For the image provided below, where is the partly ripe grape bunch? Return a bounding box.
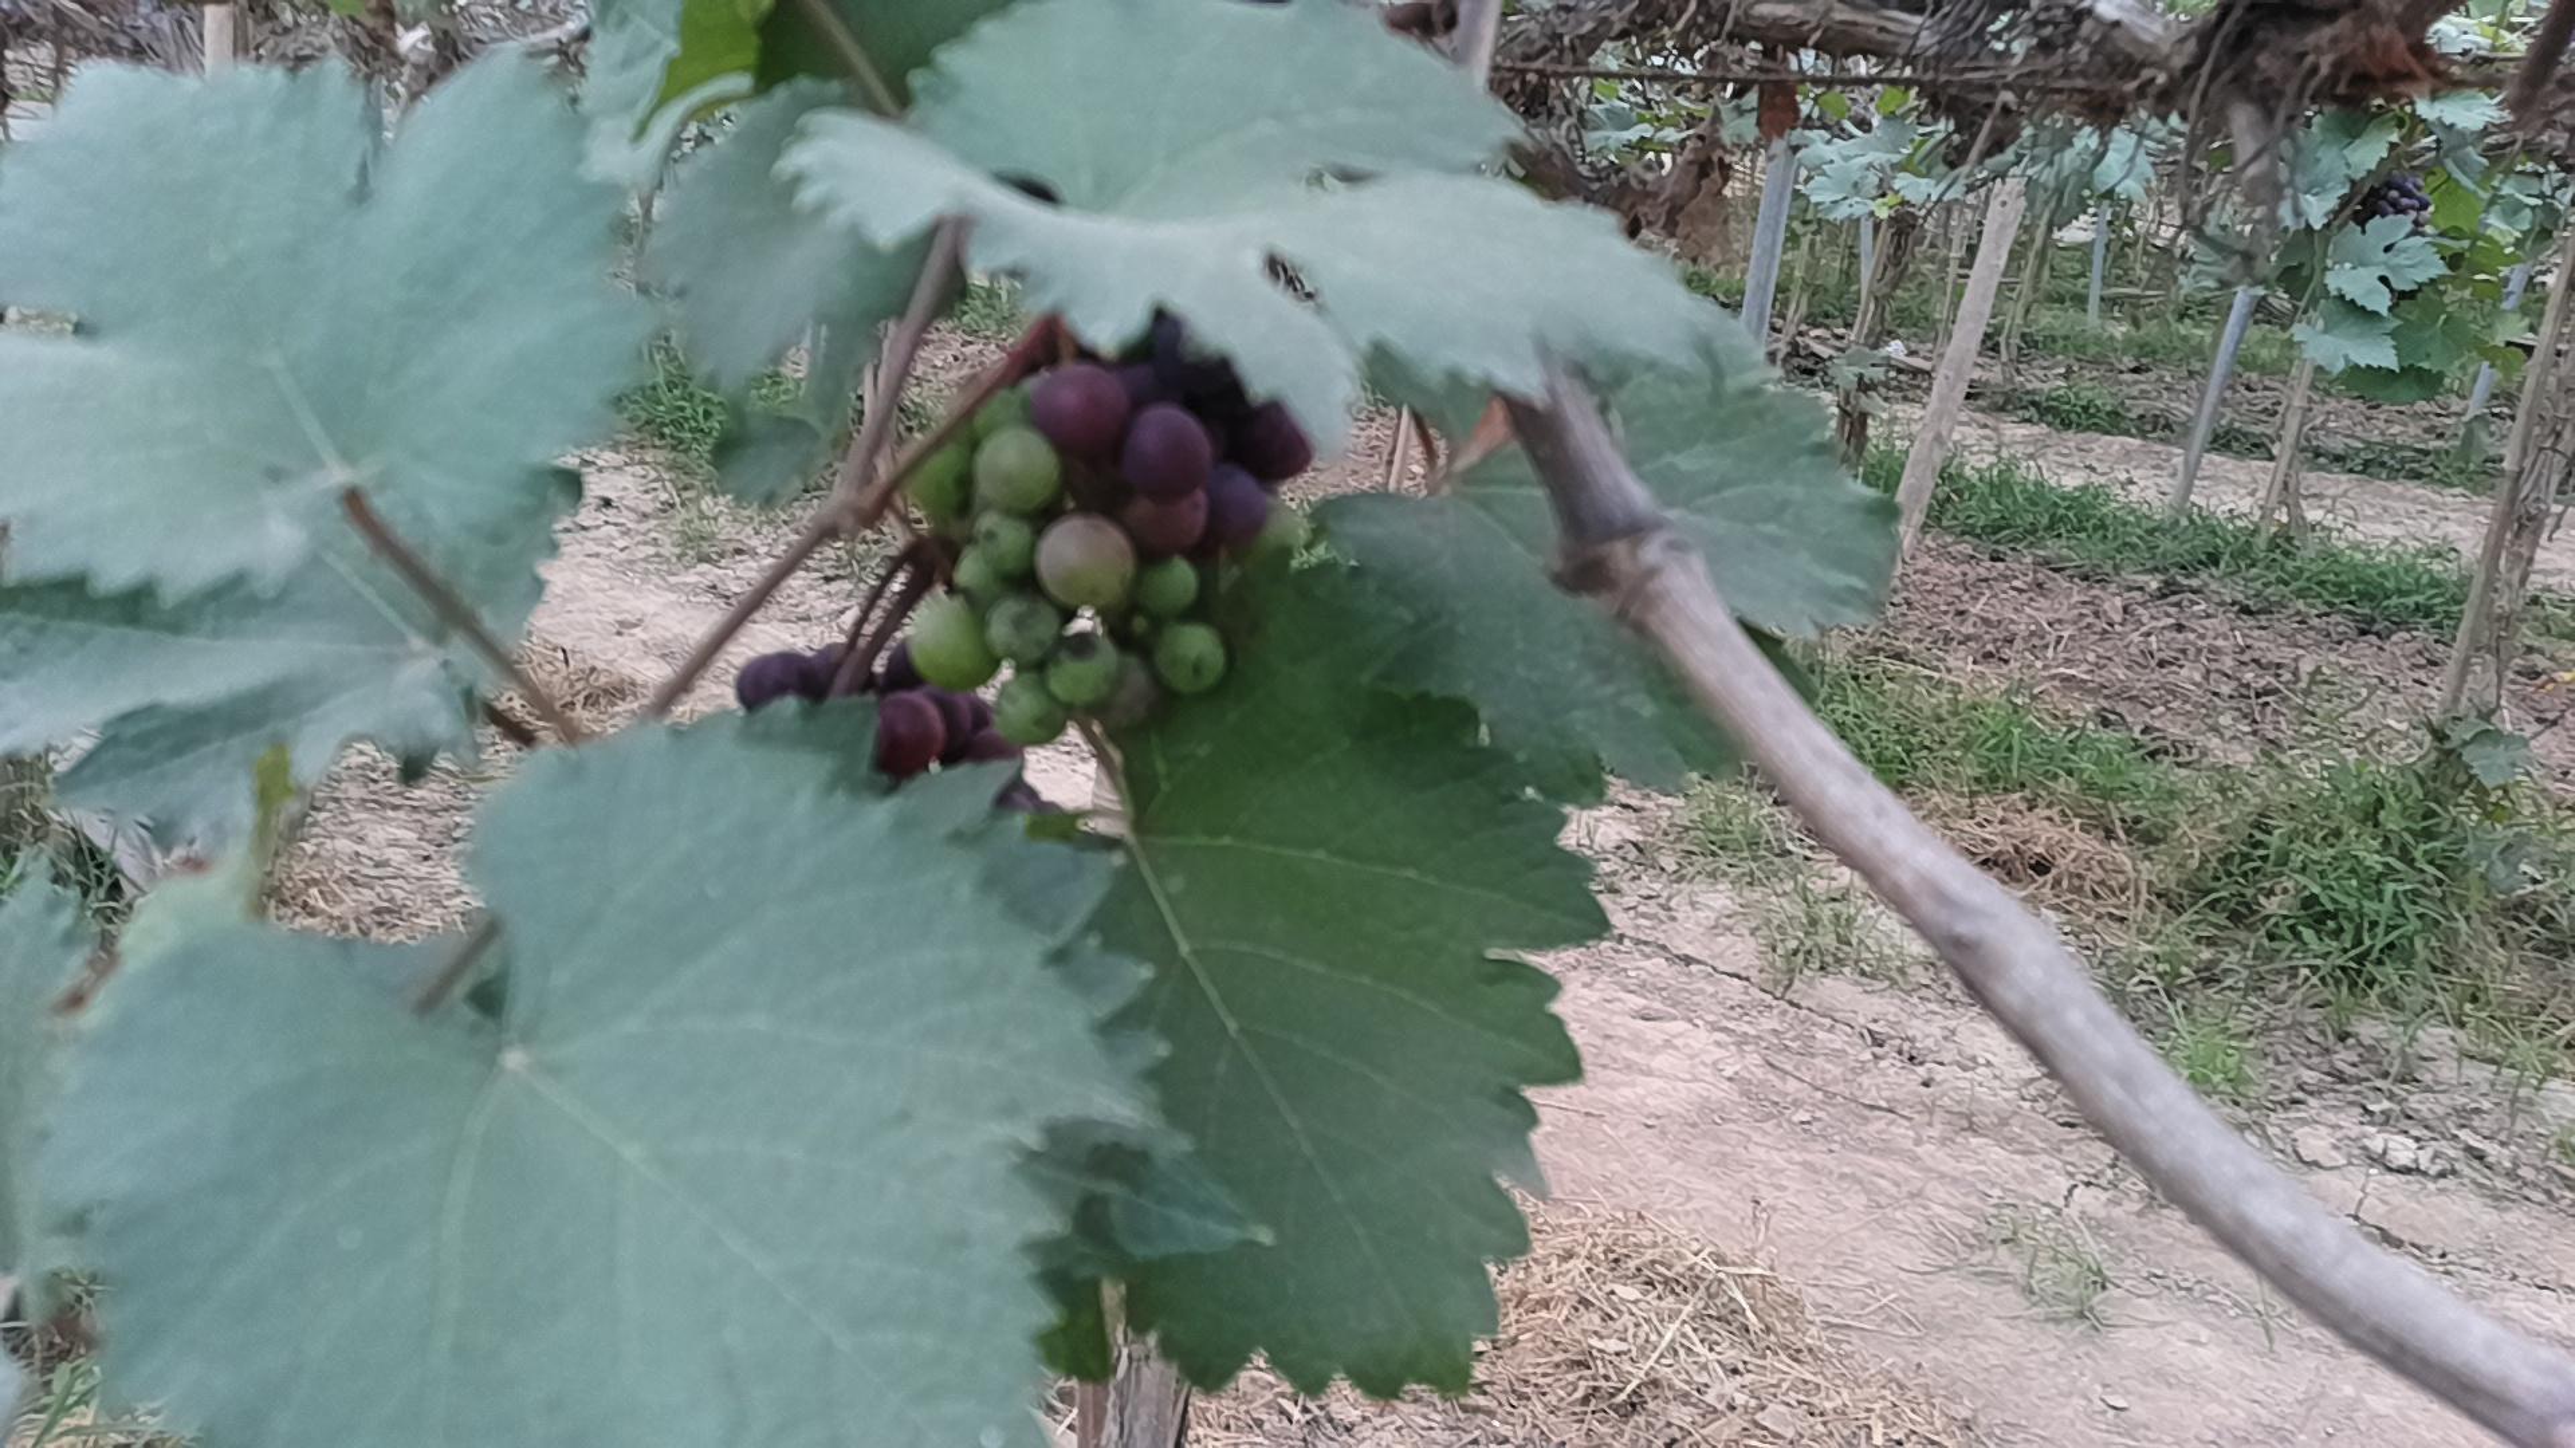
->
[736,316,1313,782]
